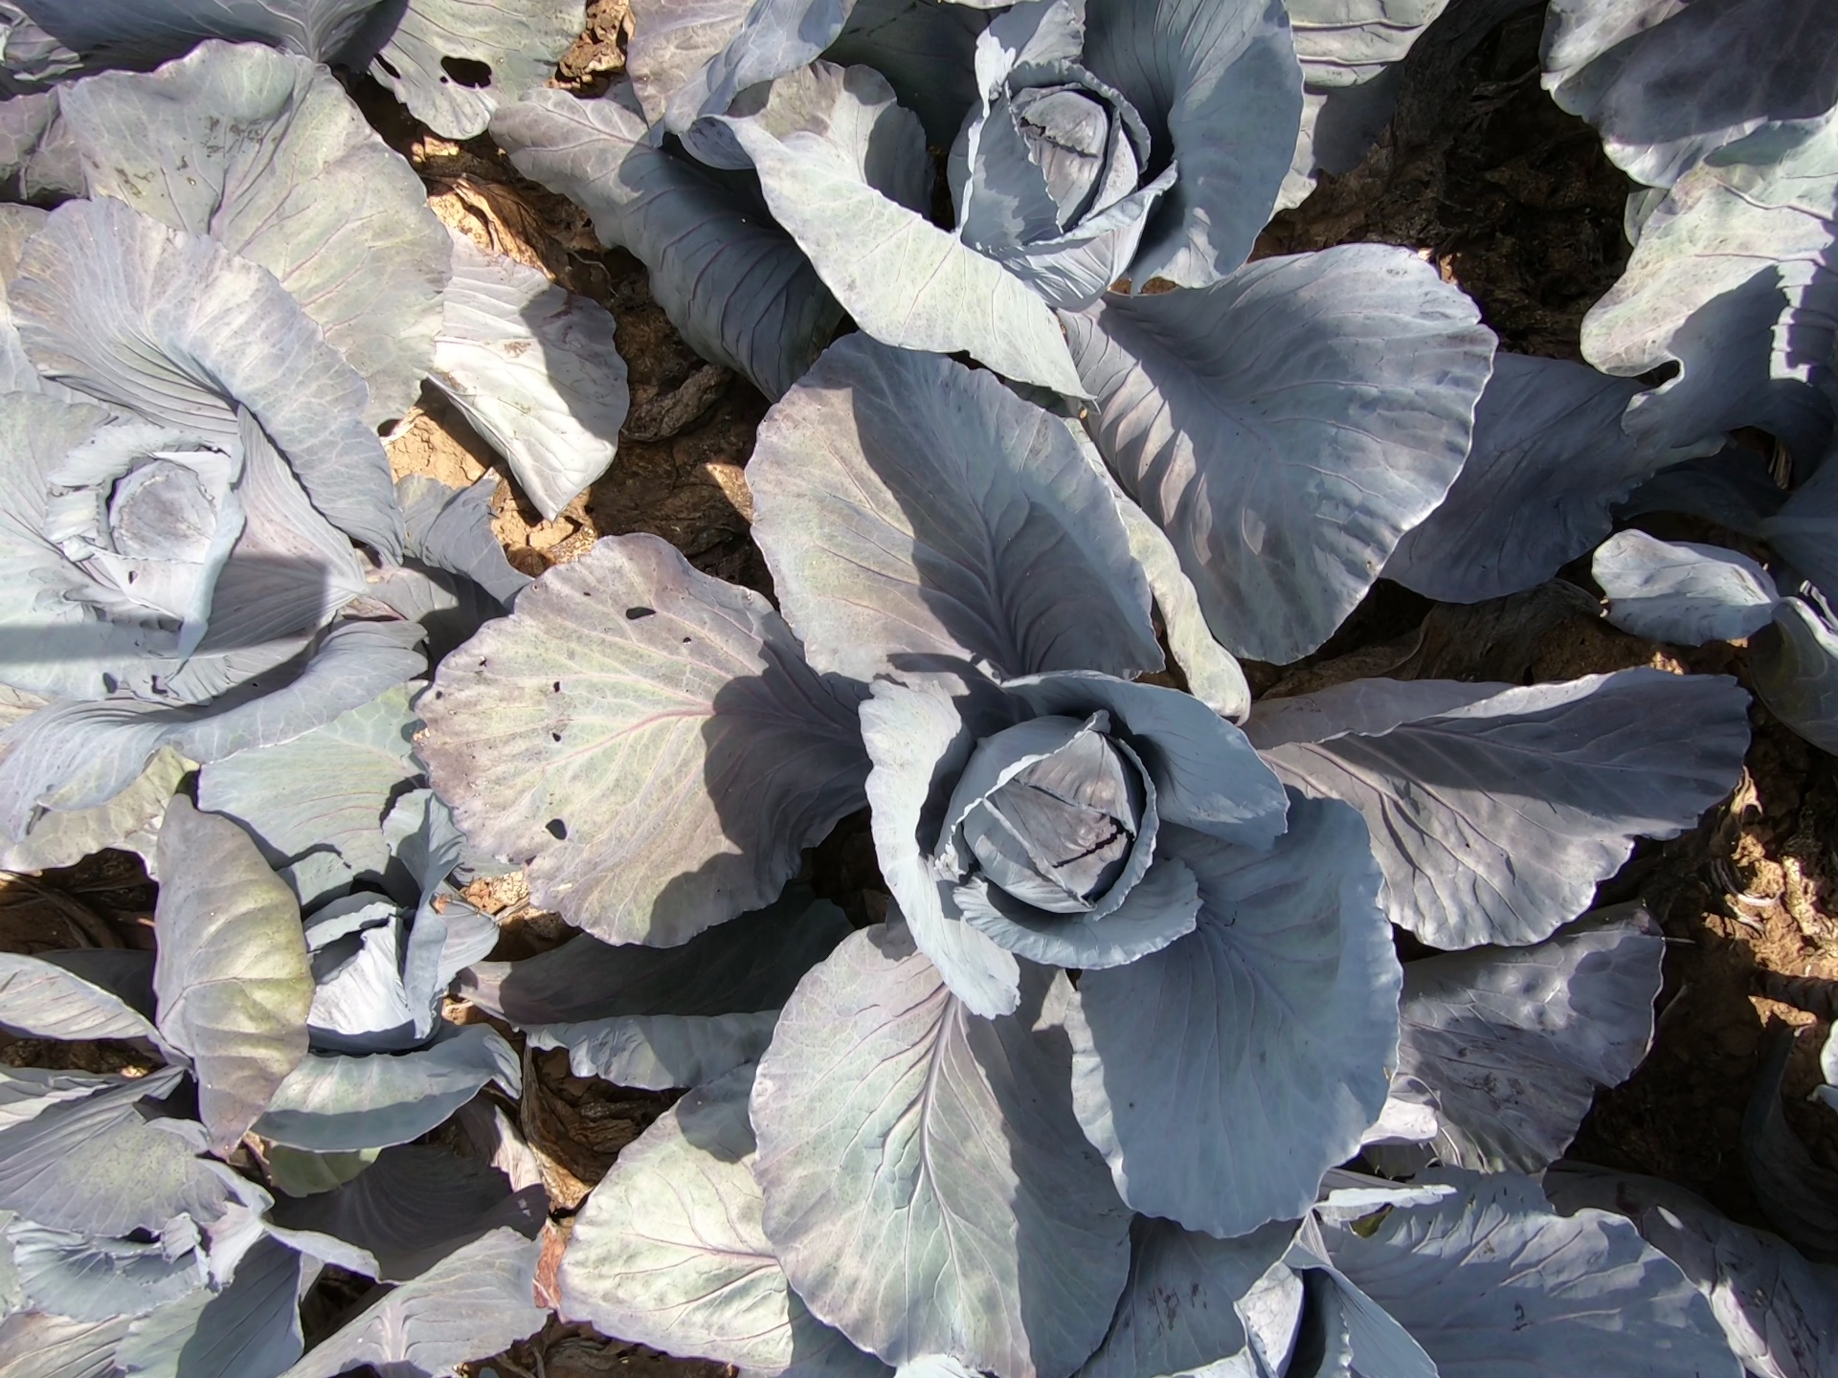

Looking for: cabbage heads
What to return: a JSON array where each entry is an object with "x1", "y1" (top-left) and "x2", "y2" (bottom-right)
[
  {"x1": 947, "y1": 86, "x2": 1145, "y2": 292},
  {"x1": 95, "y1": 1127, "x2": 224, "y2": 1263},
  {"x1": 1118, "y1": 1216, "x2": 1312, "y2": 1375},
  {"x1": 105, "y1": 450, "x2": 276, "y2": 607},
  {"x1": 956, "y1": 725, "x2": 1158, "y2": 908},
  {"x1": 260, "y1": 892, "x2": 437, "y2": 1055}
]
